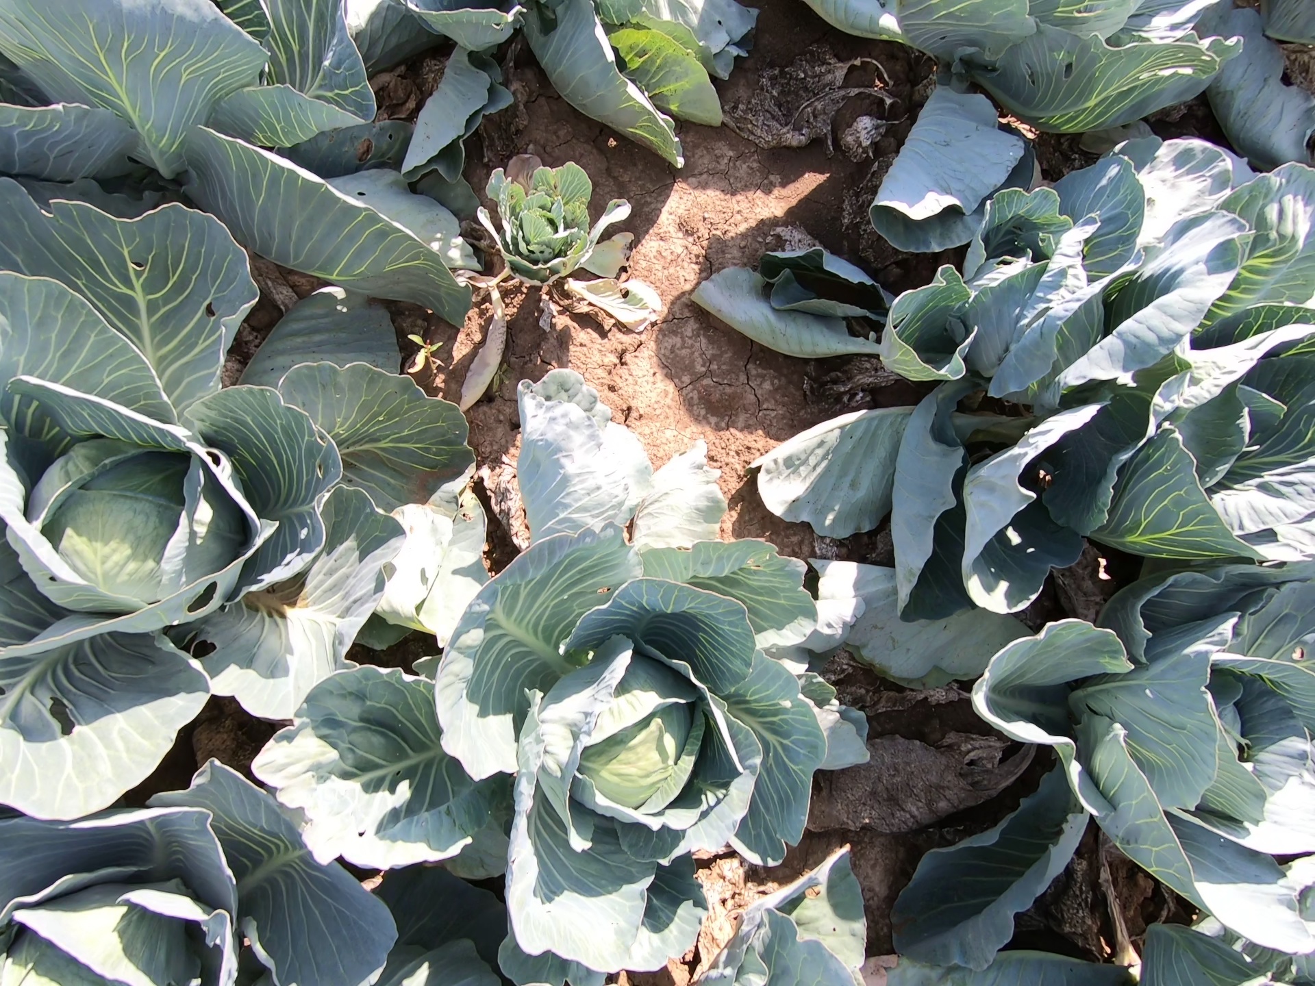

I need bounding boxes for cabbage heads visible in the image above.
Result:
[965,253,1054,353]
[33,444,237,605]
[1,887,186,985]
[553,654,697,817]
[1146,687,1243,776]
